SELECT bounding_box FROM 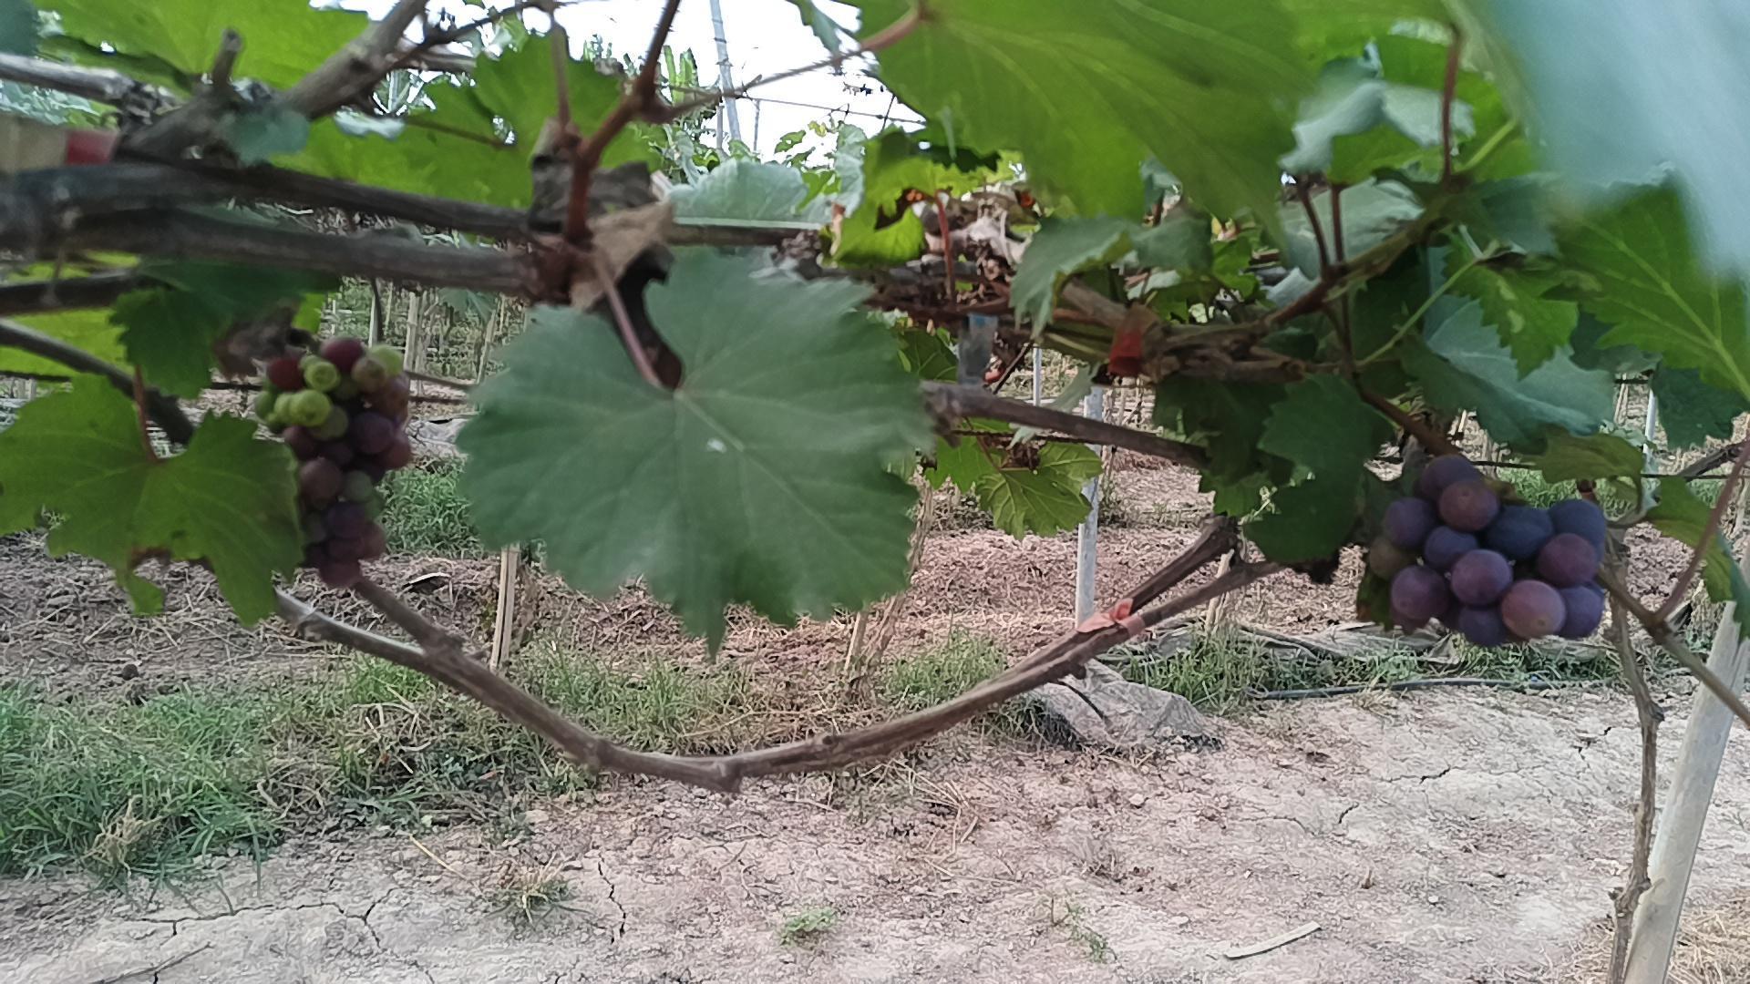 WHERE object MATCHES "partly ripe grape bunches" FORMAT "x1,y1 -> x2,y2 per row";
252,328 -> 412,588
1356,456 -> 1606,646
